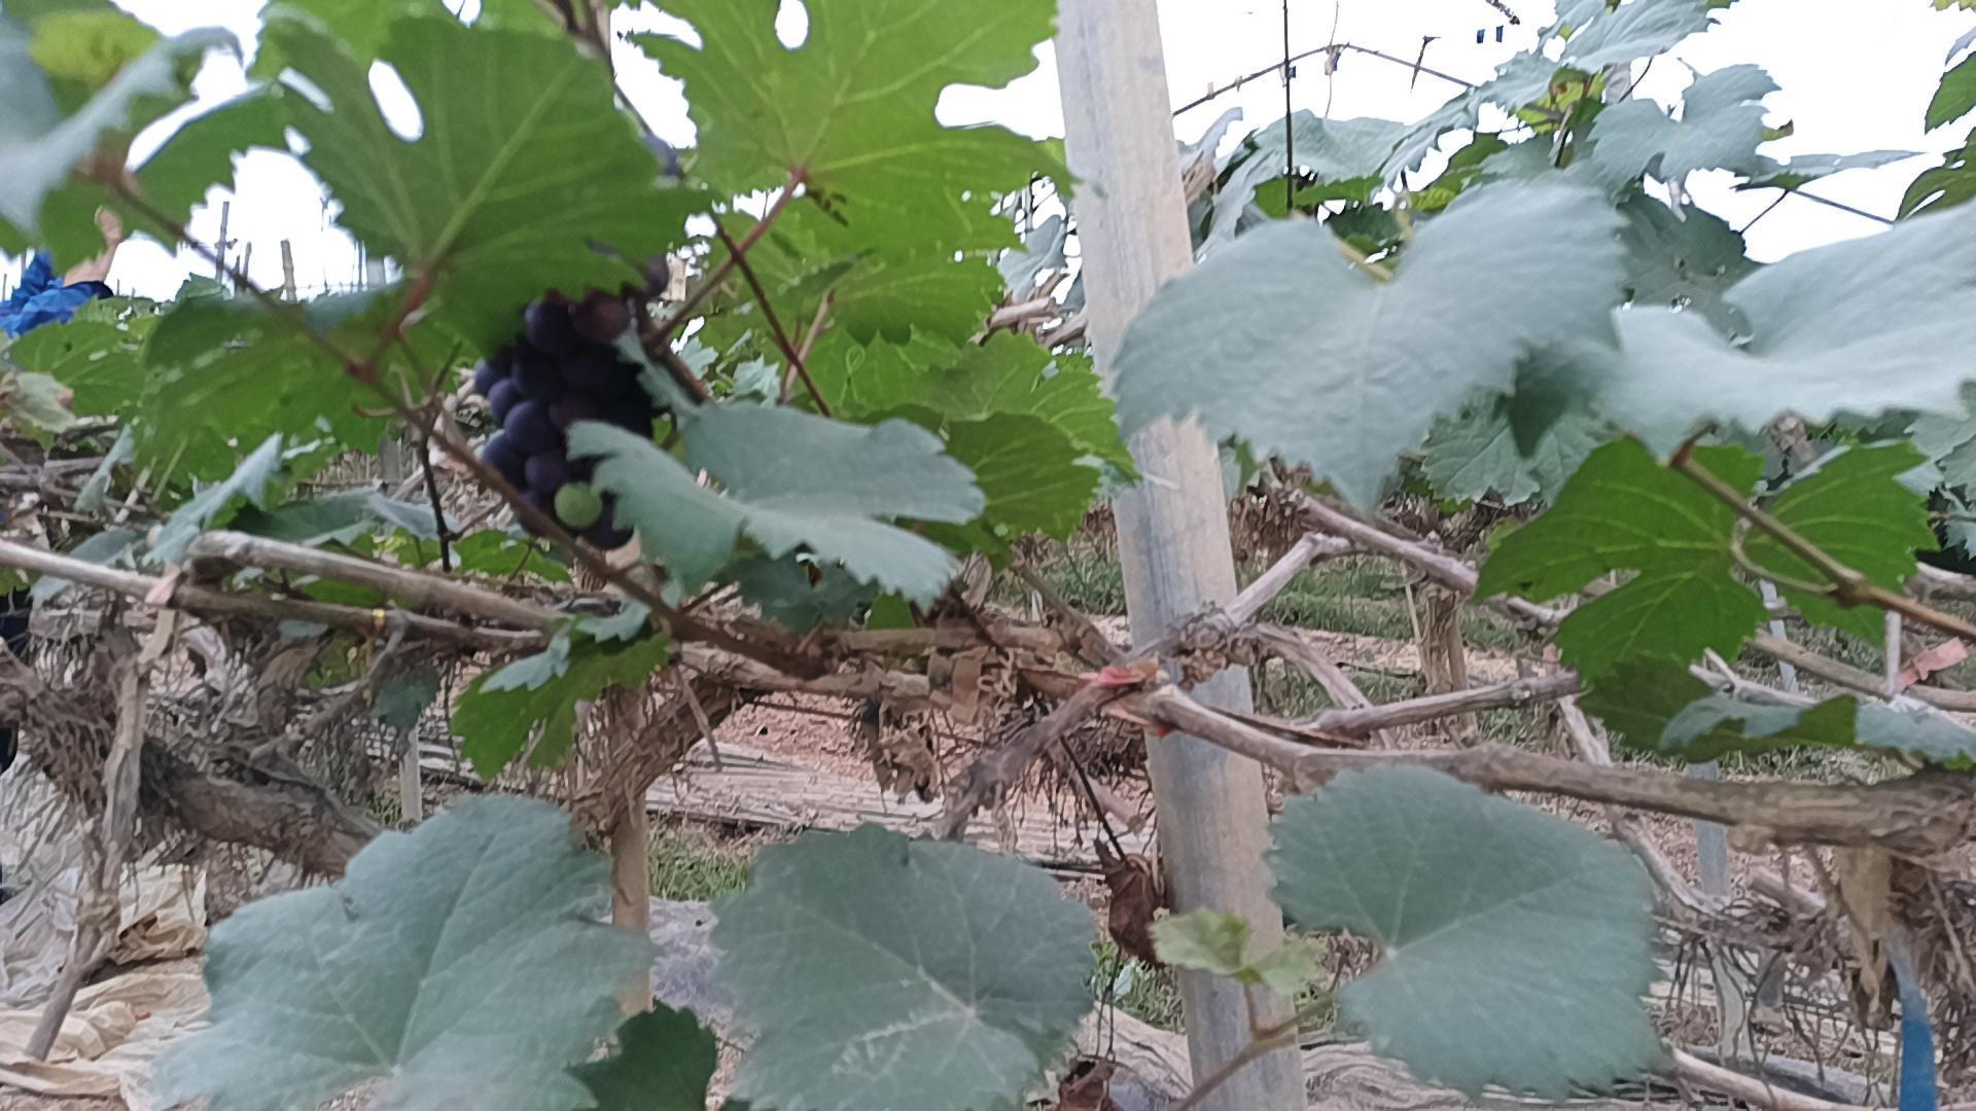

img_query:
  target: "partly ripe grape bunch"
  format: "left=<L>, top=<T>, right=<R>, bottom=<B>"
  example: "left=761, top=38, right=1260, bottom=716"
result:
left=472, top=134, right=687, bottom=553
